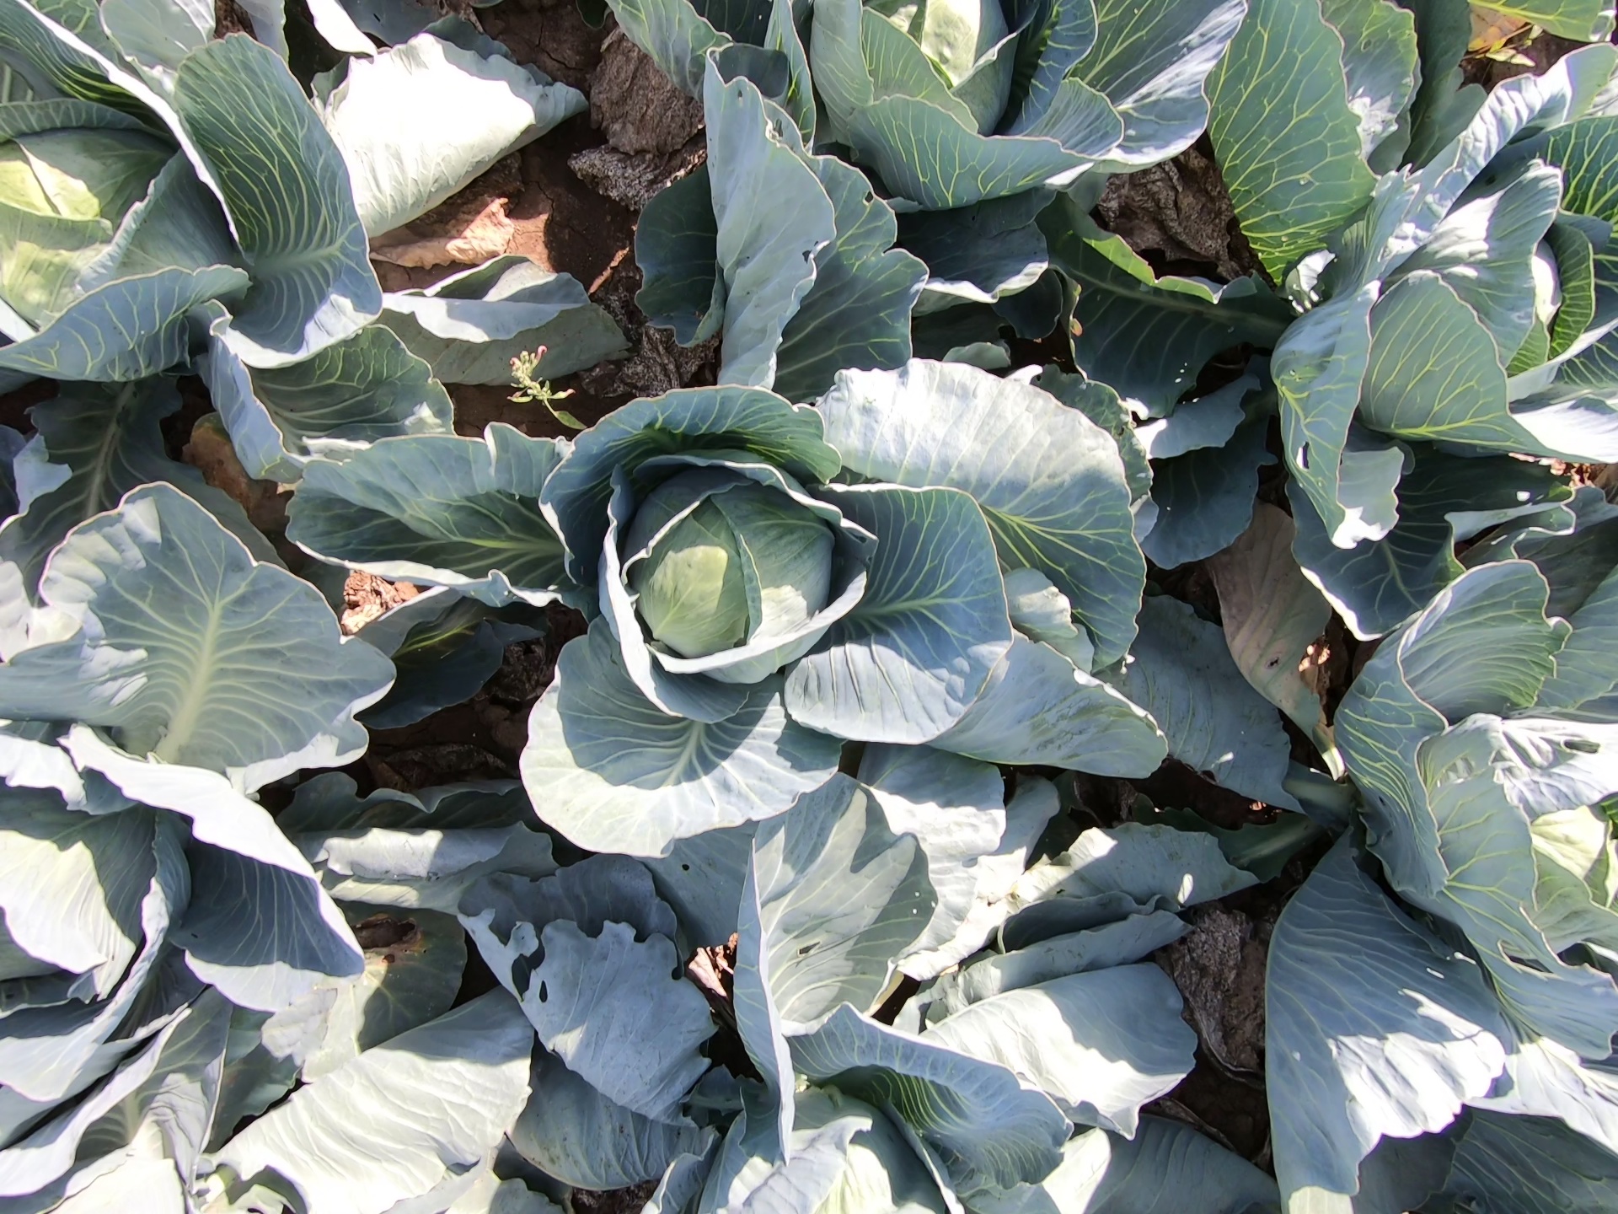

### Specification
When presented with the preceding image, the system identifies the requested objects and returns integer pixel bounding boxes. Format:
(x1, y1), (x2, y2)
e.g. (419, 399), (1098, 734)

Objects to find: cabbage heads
(1423, 756), (1616, 962)
(700, 1086), (918, 1211)
(5, 787), (168, 982)
(1410, 212), (1560, 373)
(626, 462), (829, 670)
(860, 3), (1010, 137)
(0, 126), (233, 347)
